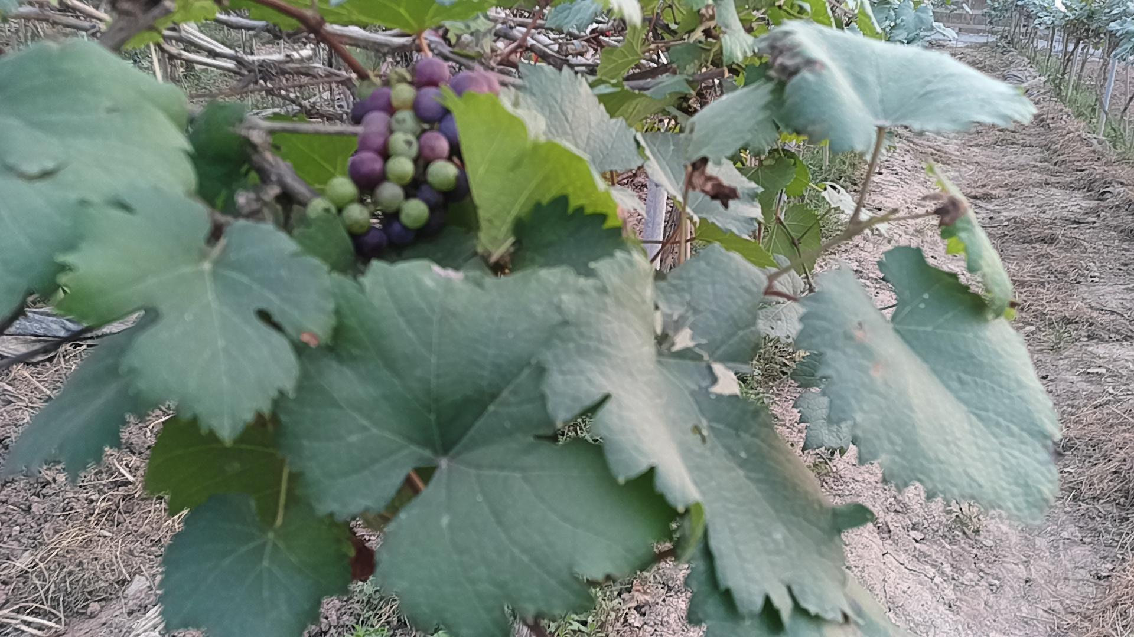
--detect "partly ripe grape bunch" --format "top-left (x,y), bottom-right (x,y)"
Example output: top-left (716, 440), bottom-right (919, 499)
top-left (305, 57), bottom-right (499, 258)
